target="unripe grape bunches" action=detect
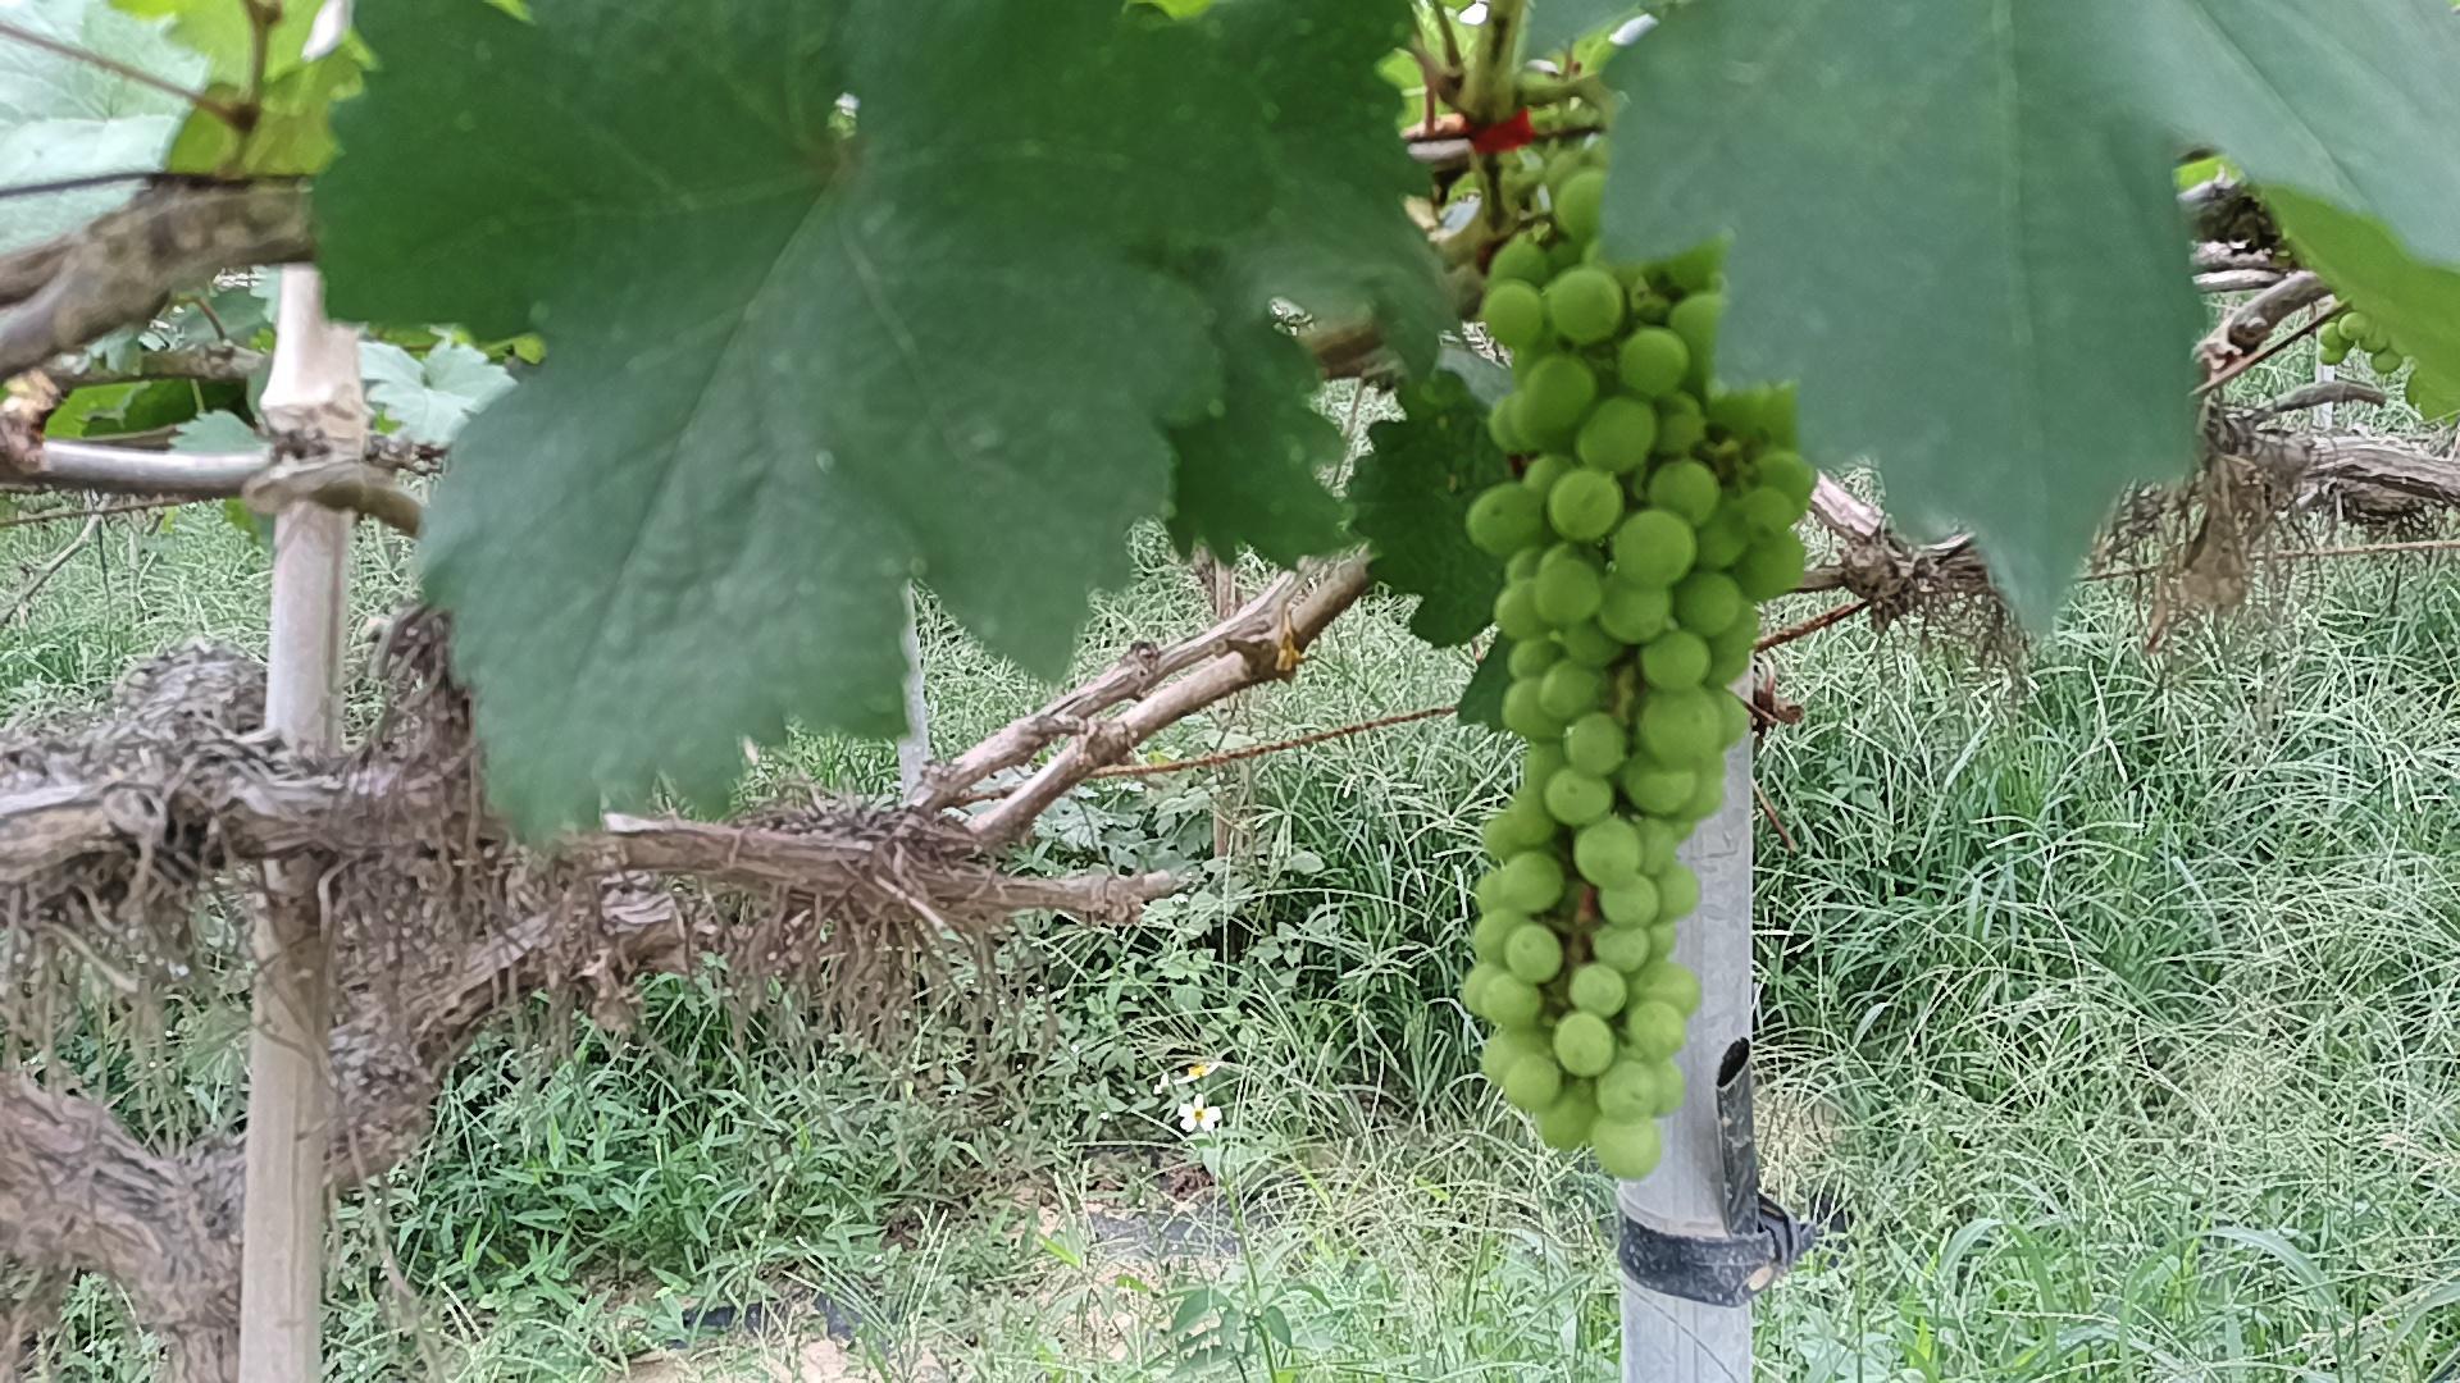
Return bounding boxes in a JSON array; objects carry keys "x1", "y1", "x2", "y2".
[
  {"x1": 1463, "y1": 140, "x2": 1813, "y2": 1179},
  {"x1": 2315, "y1": 298, "x2": 2411, "y2": 383}
]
